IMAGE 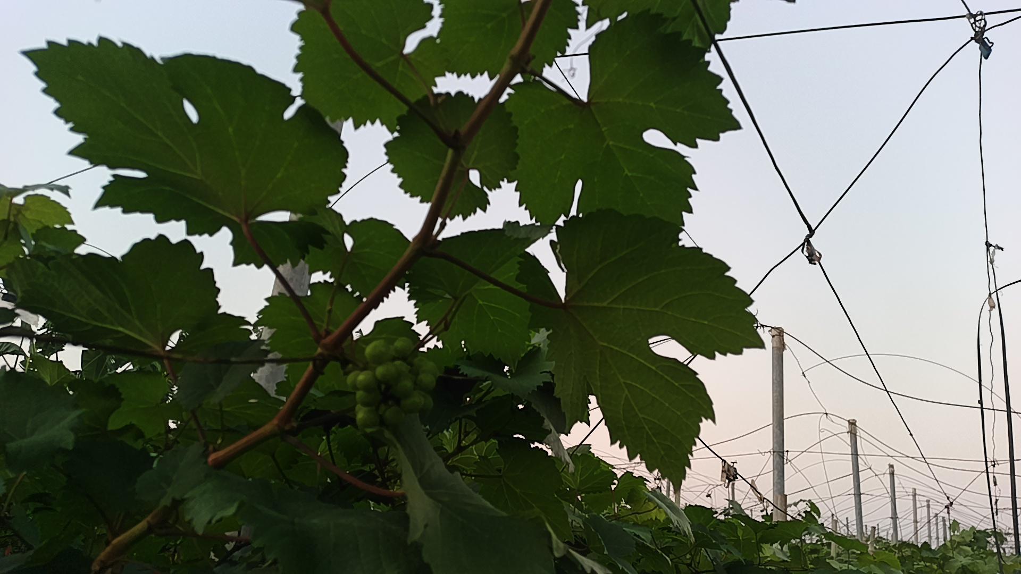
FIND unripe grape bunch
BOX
[346,336,441,433]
